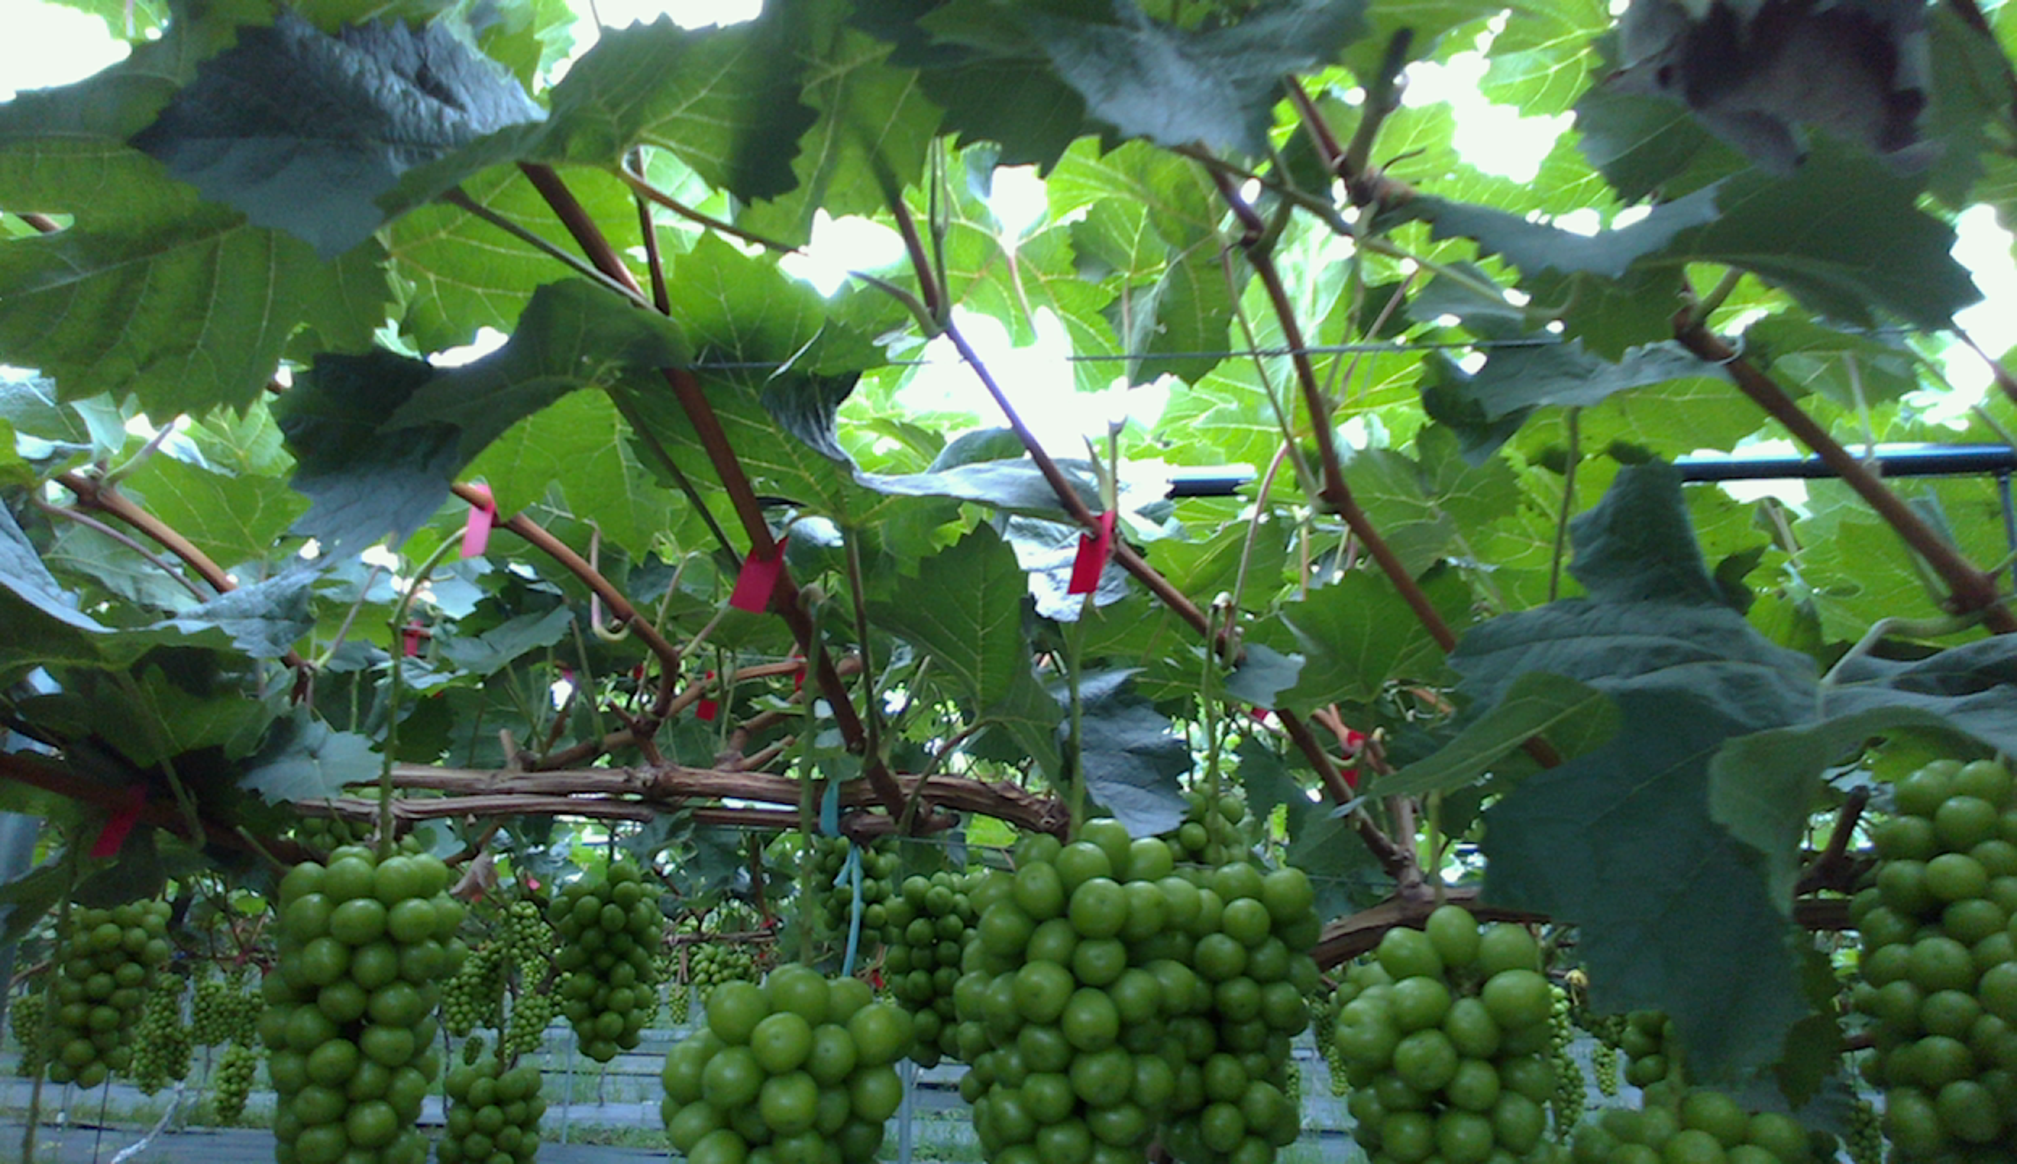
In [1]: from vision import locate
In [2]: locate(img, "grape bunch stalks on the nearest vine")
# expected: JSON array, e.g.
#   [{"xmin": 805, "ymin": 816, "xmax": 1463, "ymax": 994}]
[
  {"xmin": 375, "ymin": 525, "xmax": 467, "ymax": 863},
  {"xmin": 797, "ymin": 601, "xmax": 855, "ymax": 968},
  {"xmin": 1201, "ymin": 590, "xmax": 1238, "ymax": 875},
  {"xmin": 1425, "ymin": 789, "xmax": 1443, "ymax": 912},
  {"xmin": 1067, "ymin": 593, "xmax": 1096, "ymax": 846}
]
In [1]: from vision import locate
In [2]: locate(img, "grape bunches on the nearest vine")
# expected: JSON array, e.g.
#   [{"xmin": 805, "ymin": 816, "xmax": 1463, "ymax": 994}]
[
  {"xmin": 257, "ymin": 846, "xmax": 469, "ymax": 1162},
  {"xmin": 954, "ymin": 816, "xmax": 1199, "ymax": 1162},
  {"xmin": 1849, "ymin": 760, "xmax": 2015, "ymax": 1162},
  {"xmin": 659, "ymin": 962, "xmax": 913, "ymax": 1162},
  {"xmin": 1333, "ymin": 904, "xmax": 1556, "ymax": 1162},
  {"xmin": 1555, "ymin": 1077, "xmax": 1810, "ymax": 1162},
  {"xmin": 1165, "ymin": 860, "xmax": 1320, "ymax": 1162}
]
